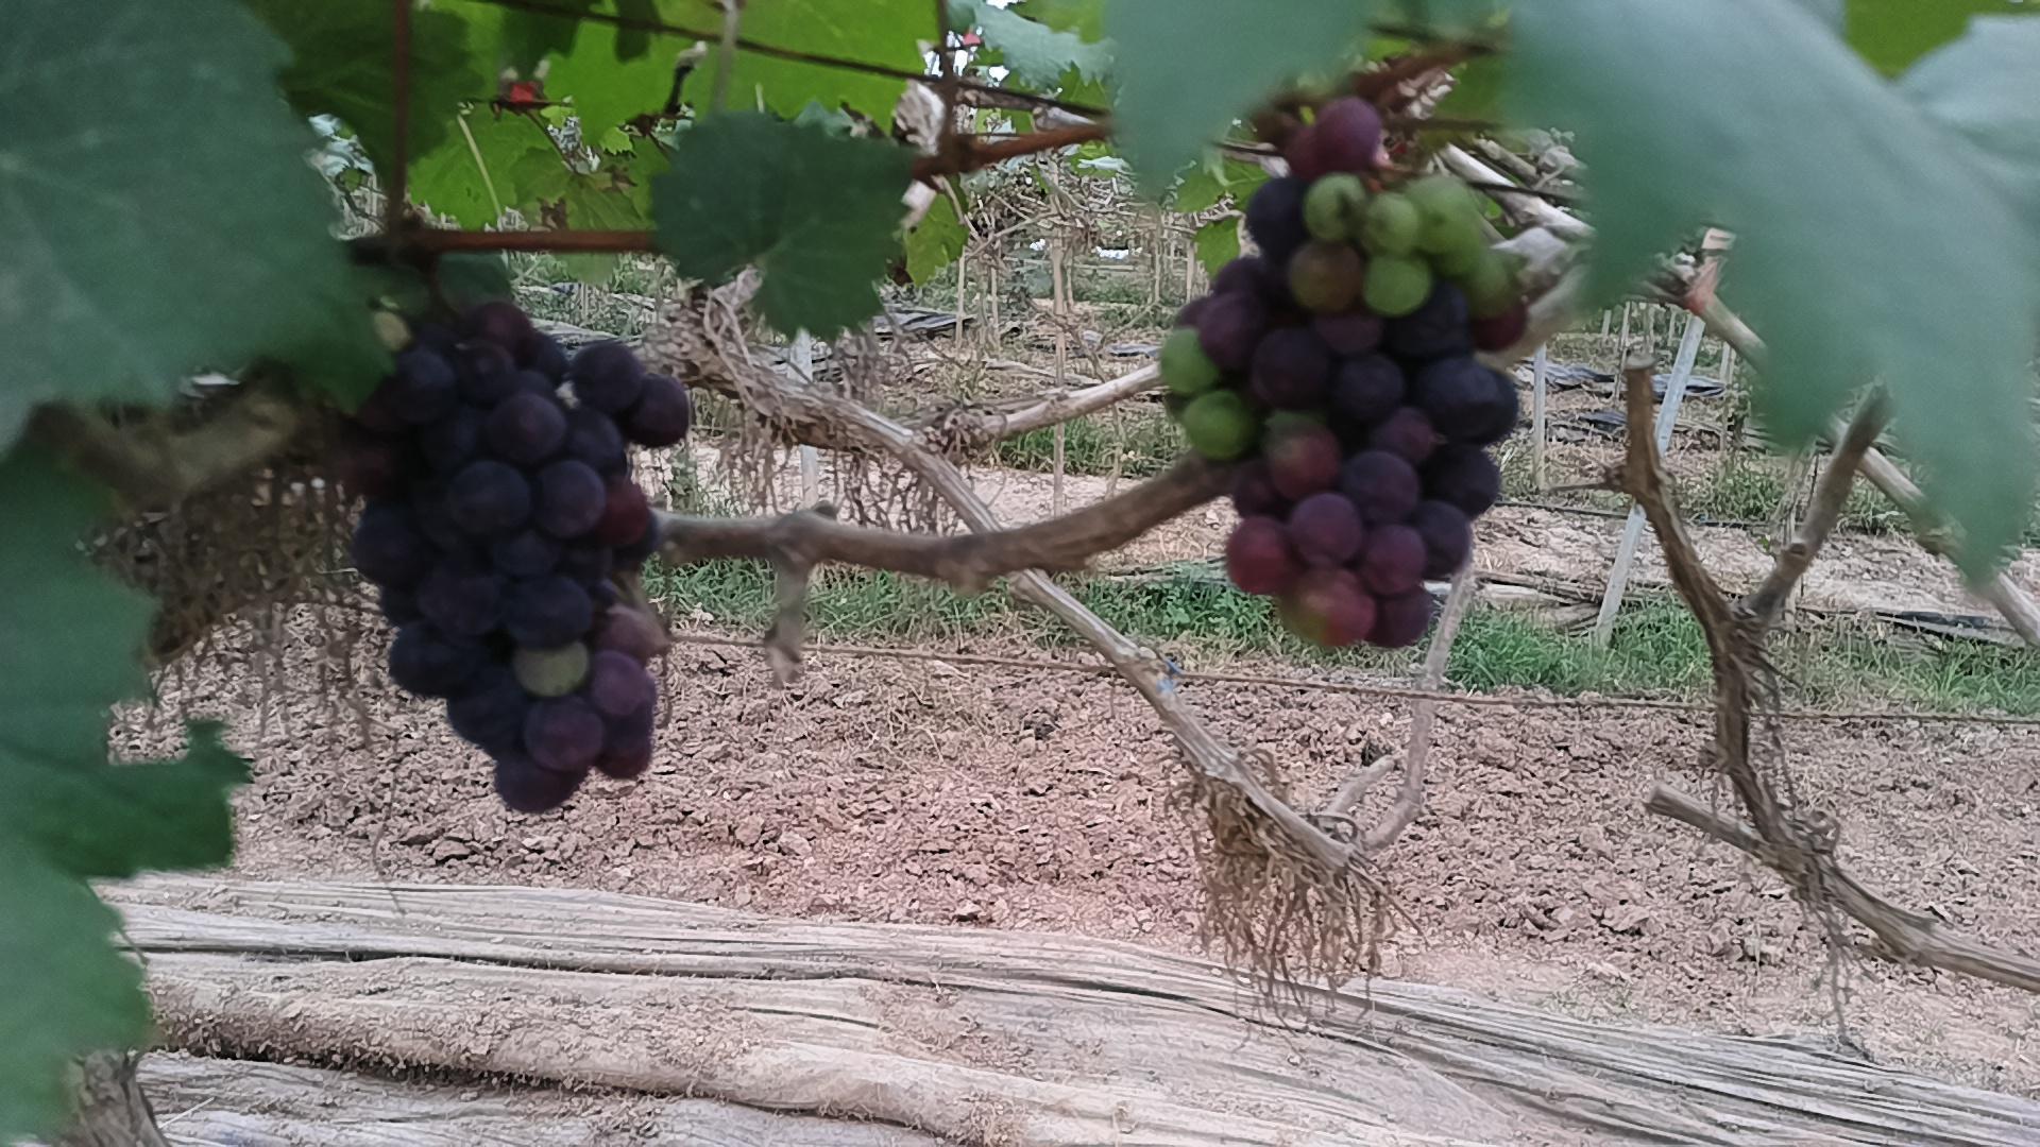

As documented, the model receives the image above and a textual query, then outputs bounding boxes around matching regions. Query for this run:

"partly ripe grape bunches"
[1161,96,1527,647]
[345,302,692,812]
